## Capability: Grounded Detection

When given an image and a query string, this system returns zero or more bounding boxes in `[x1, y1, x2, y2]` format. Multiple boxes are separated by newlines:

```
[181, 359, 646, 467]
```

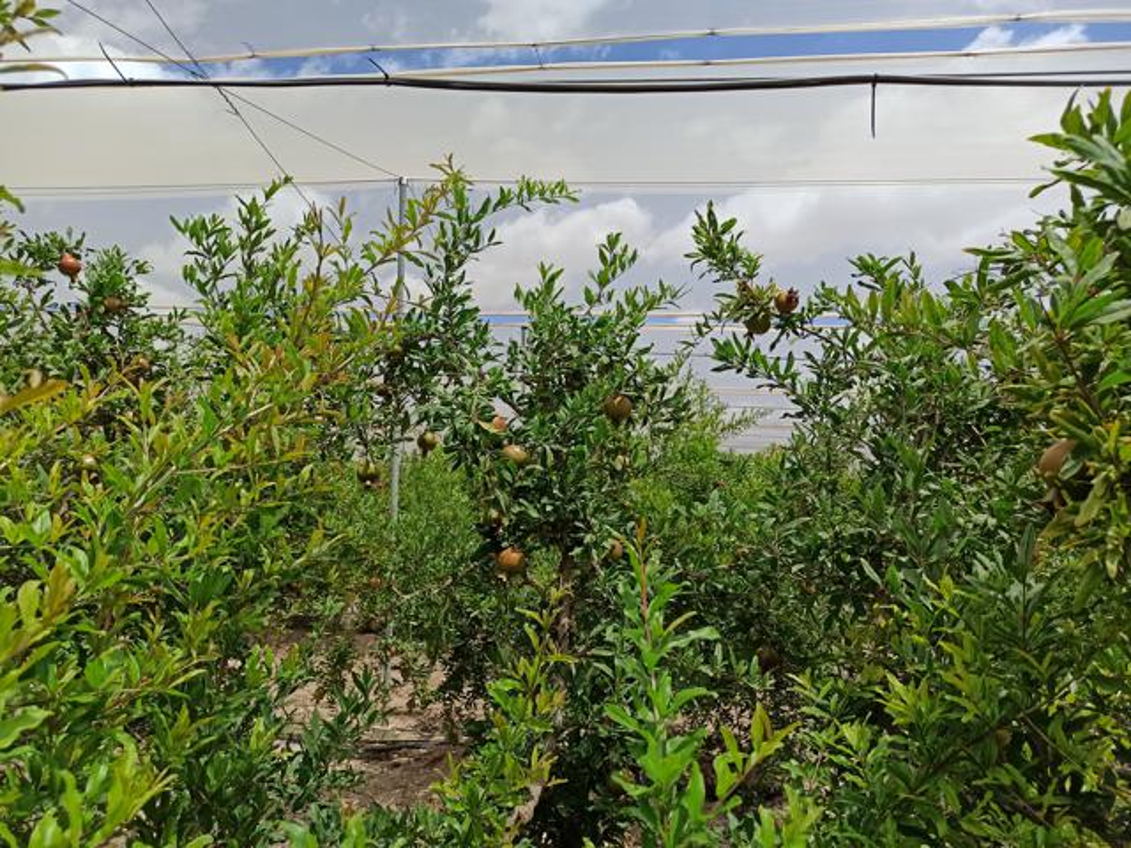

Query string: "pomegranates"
[495, 546, 527, 583]
[774, 286, 799, 313]
[610, 539, 624, 558]
[603, 394, 633, 428]
[58, 253, 81, 283]
[742, 313, 770, 339]
[500, 443, 528, 465]
[138, 357, 150, 373]
[1034, 438, 1076, 518]
[104, 295, 122, 313]
[74, 456, 101, 482]
[357, 461, 380, 489]
[491, 415, 505, 429]
[417, 429, 438, 456]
